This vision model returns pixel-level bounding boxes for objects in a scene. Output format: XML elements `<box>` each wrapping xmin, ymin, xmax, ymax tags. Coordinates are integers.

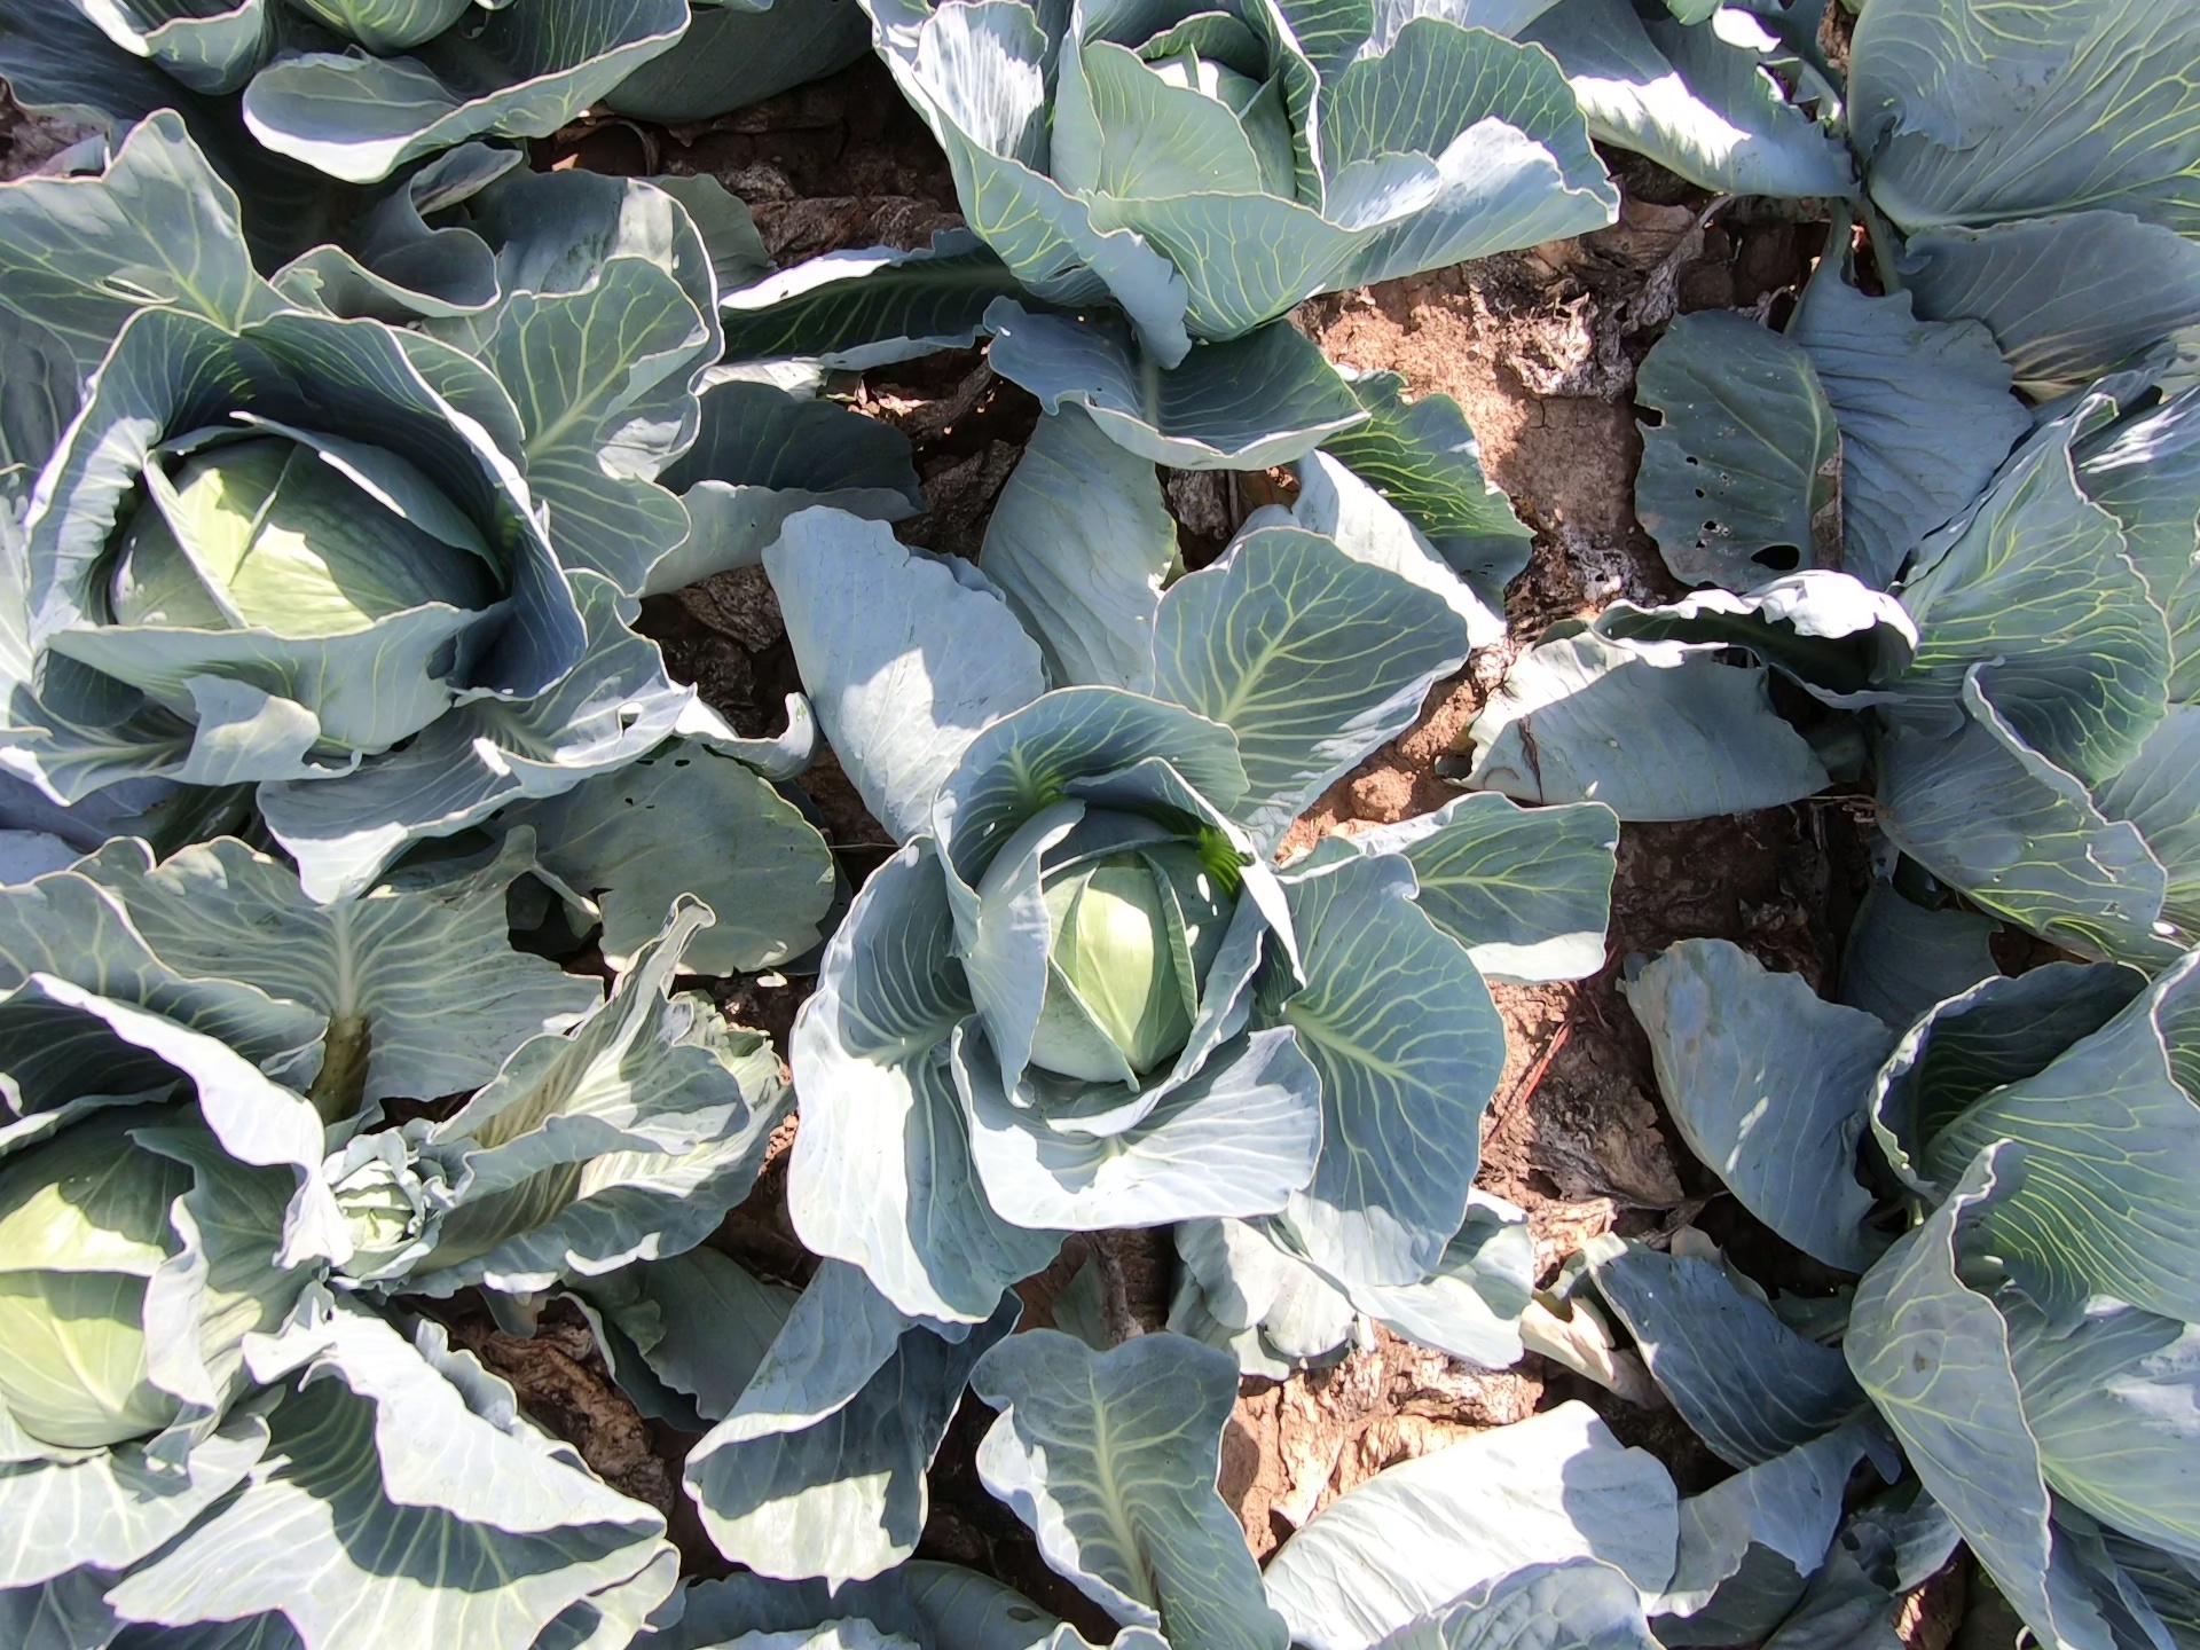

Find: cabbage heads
<box><xmin>980</xmin><ymin>806</ymin><xmax>1233</xmax><ymax>1076</ymax></box>
<box><xmin>118</xmin><ymin>433</ymin><xmax>481</xmax><ymax>733</ymax></box>
<box><xmin>1093</xmin><ymin>52</ymin><xmax>1301</xmax><ymax>283</ymax></box>
<box><xmin>319</xmin><ymin>1157</ymin><xmax>422</xmax><ymax>1280</ymax></box>
<box><xmin>3</xmin><ymin>1111</ymin><xmax>312</xmax><ymax>1448</ymax></box>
